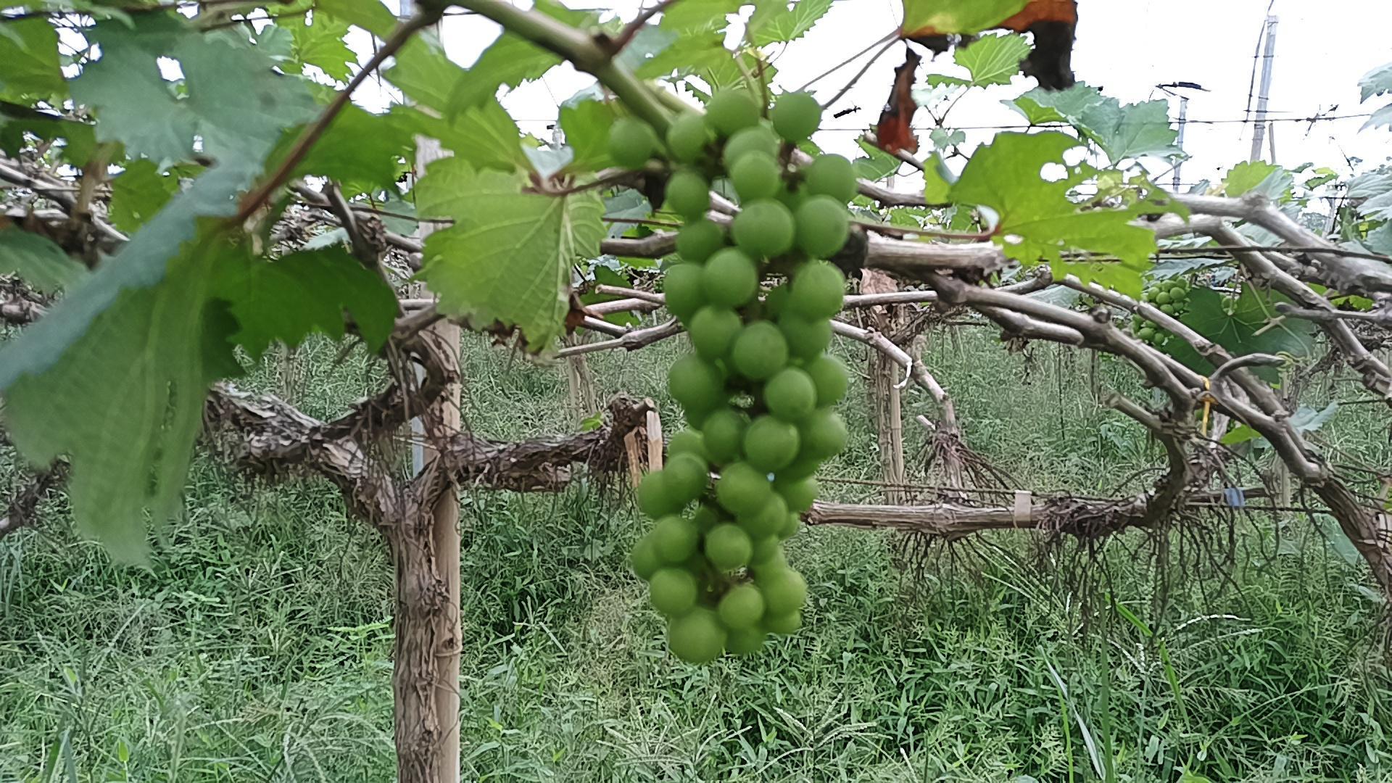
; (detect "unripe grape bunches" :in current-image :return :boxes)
[1130,276,1193,349]
[608,90,856,663]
